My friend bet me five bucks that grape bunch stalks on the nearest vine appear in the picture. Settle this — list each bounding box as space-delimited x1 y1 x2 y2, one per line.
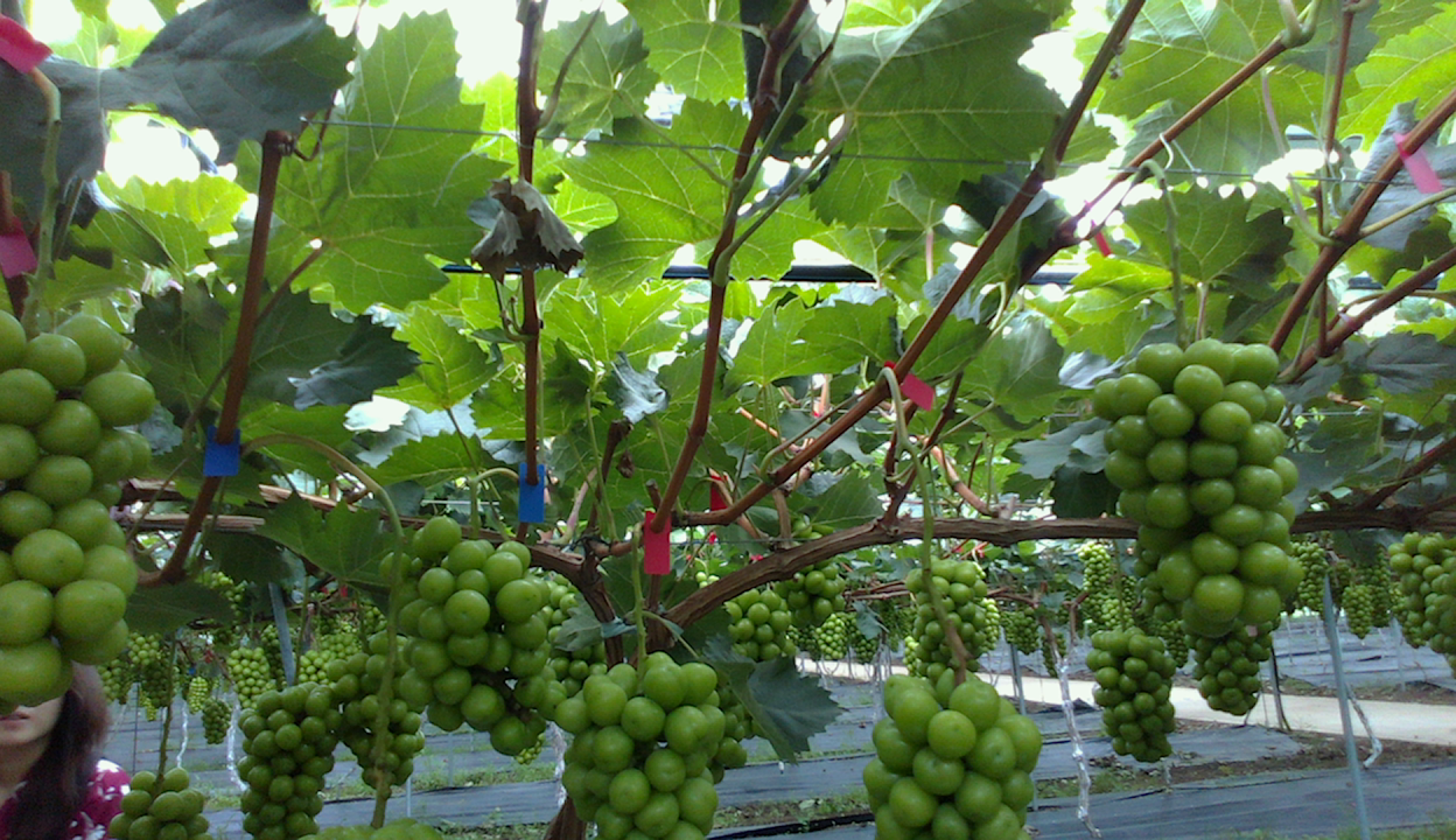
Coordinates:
876 365 966 684
240 434 405 829
631 519 645 679
1143 161 1188 351
22 66 60 339
469 468 520 538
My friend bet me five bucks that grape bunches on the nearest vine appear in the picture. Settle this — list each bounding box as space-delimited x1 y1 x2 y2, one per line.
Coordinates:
862 668 1042 839
2 311 155 714
558 653 726 838
397 514 566 756
1093 338 1302 637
